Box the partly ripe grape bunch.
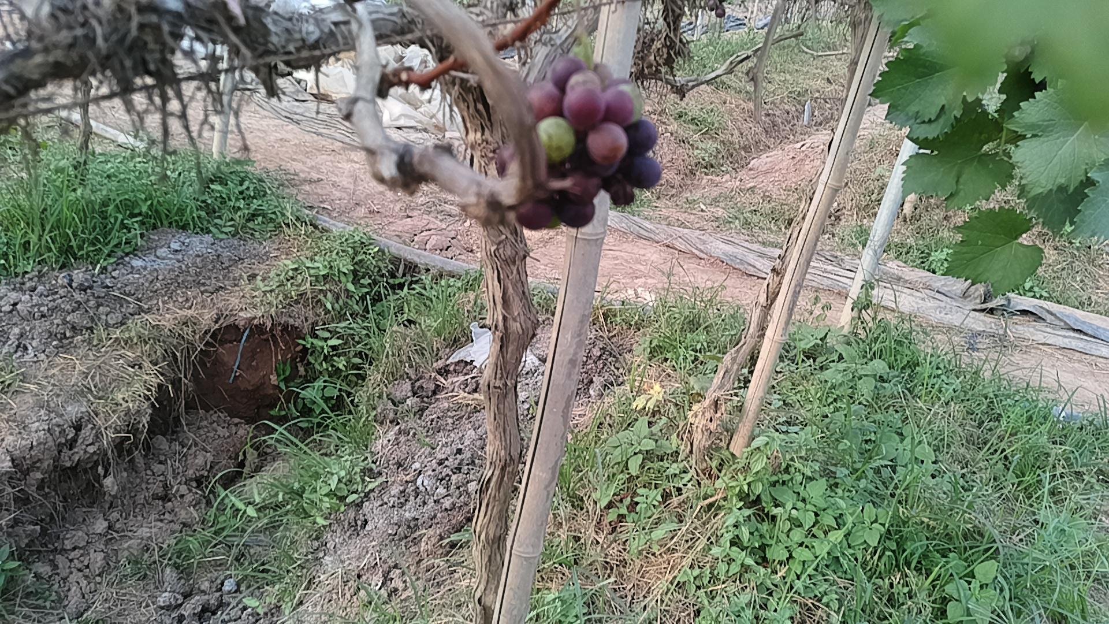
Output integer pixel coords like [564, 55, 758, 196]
[494, 55, 661, 229]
